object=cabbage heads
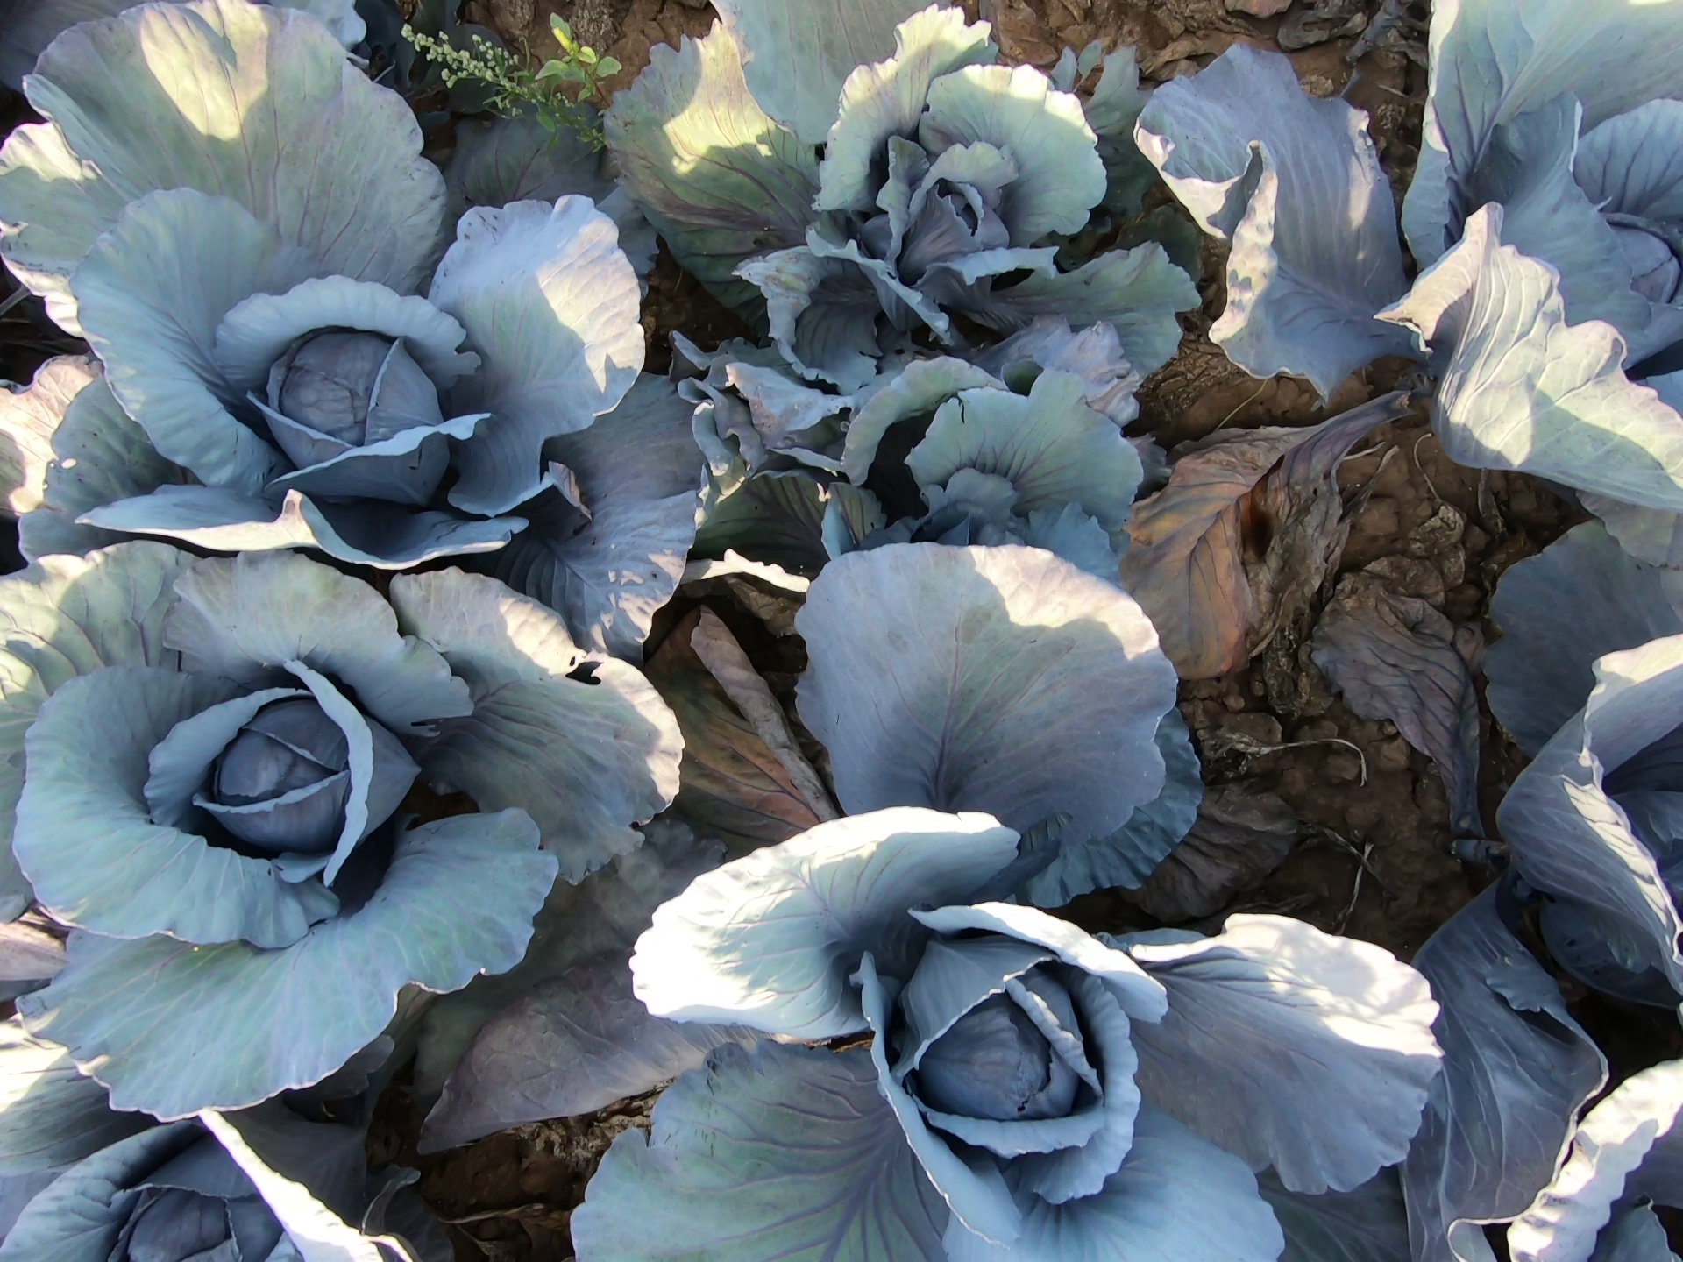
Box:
[915,958,1083,1143]
[918,195,1000,269]
[273,330,439,494]
[218,704,370,847]
[1527,216,1681,341]
[127,1138,334,1259]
